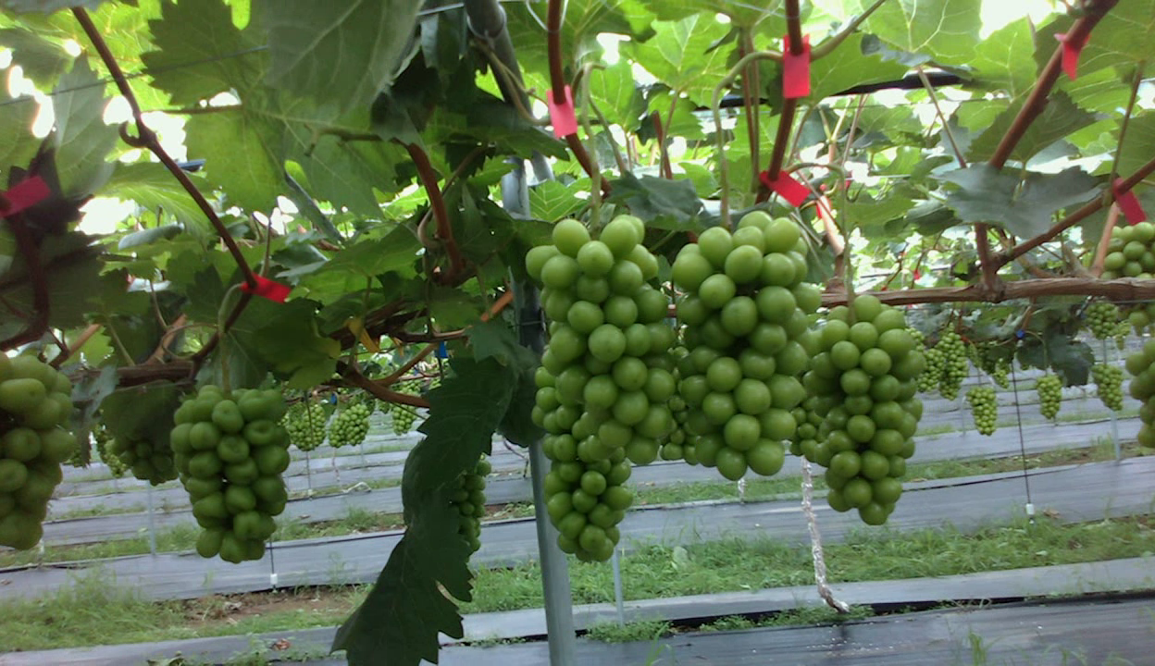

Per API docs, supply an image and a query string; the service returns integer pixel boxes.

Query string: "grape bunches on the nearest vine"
[170,386,290,563]
[801,296,927,524]
[673,209,823,481]
[1,352,74,552]
[528,216,677,464]
[530,370,634,564]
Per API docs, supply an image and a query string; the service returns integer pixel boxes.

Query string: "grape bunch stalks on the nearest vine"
[712,51,778,232]
[572,61,605,240]
[789,161,858,327]
[217,285,237,398]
